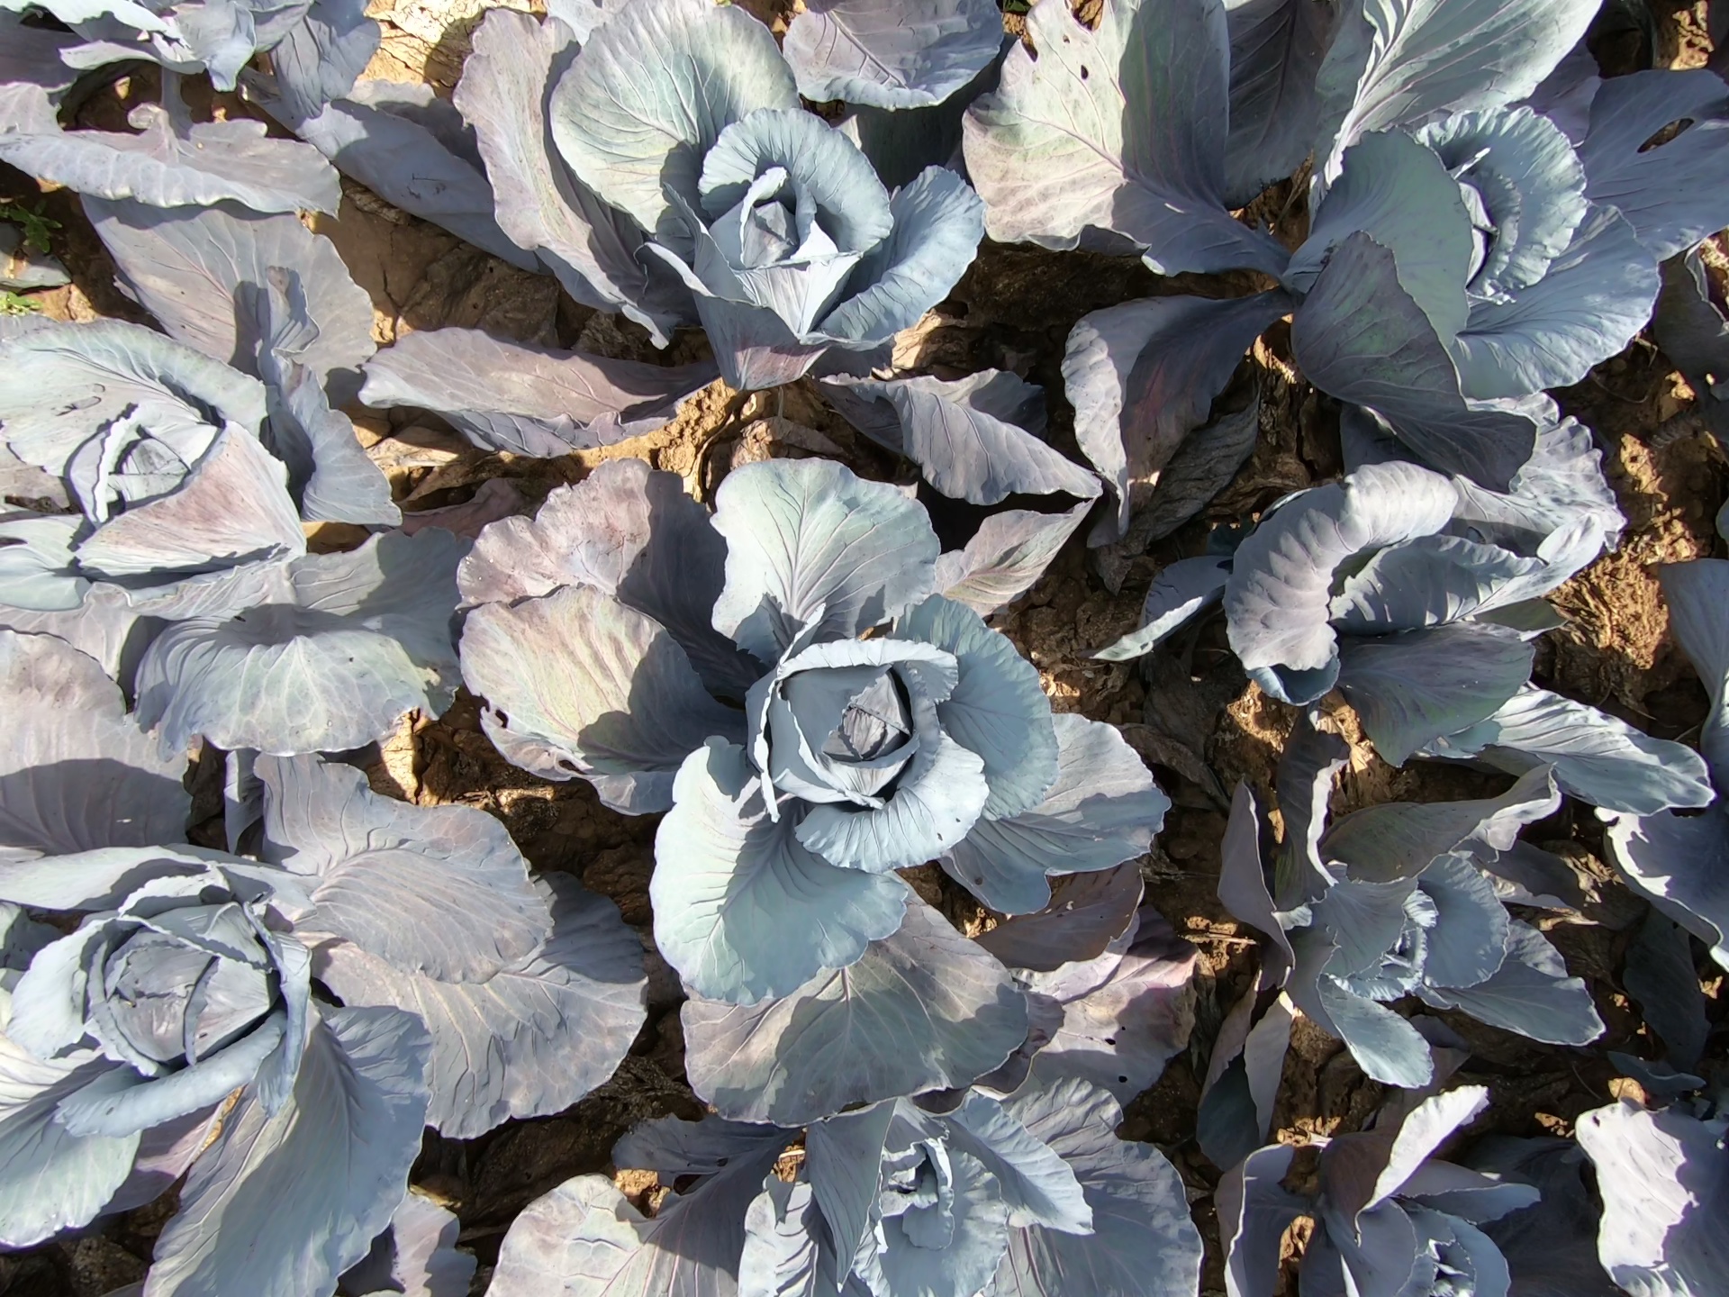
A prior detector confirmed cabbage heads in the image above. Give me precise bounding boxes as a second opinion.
[825,1102,949,1219]
[100,904,273,1063]
[788,660,906,785]
[121,422,268,555]
[714,197,828,322]
[1358,176,1489,296]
